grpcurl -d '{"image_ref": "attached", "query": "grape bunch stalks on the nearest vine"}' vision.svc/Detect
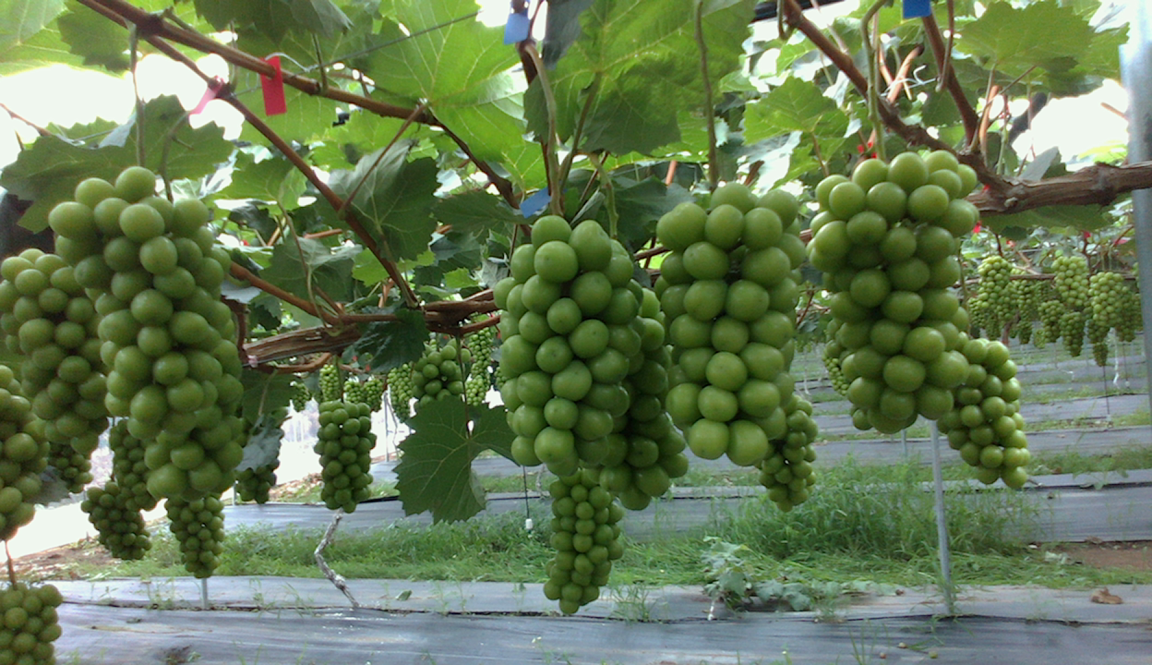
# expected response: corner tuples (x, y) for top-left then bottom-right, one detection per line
(523, 42), (564, 215)
(861, 2), (889, 162)
(694, 1), (720, 192)
(128, 26), (146, 166)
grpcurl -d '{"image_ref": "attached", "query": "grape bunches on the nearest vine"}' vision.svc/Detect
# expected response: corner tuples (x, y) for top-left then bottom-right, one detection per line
(494, 215), (645, 477)
(807, 151), (978, 434)
(935, 332), (1028, 489)
(48, 164), (244, 504)
(1, 248), (110, 454)
(654, 184), (806, 465)
(1, 365), (48, 541)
